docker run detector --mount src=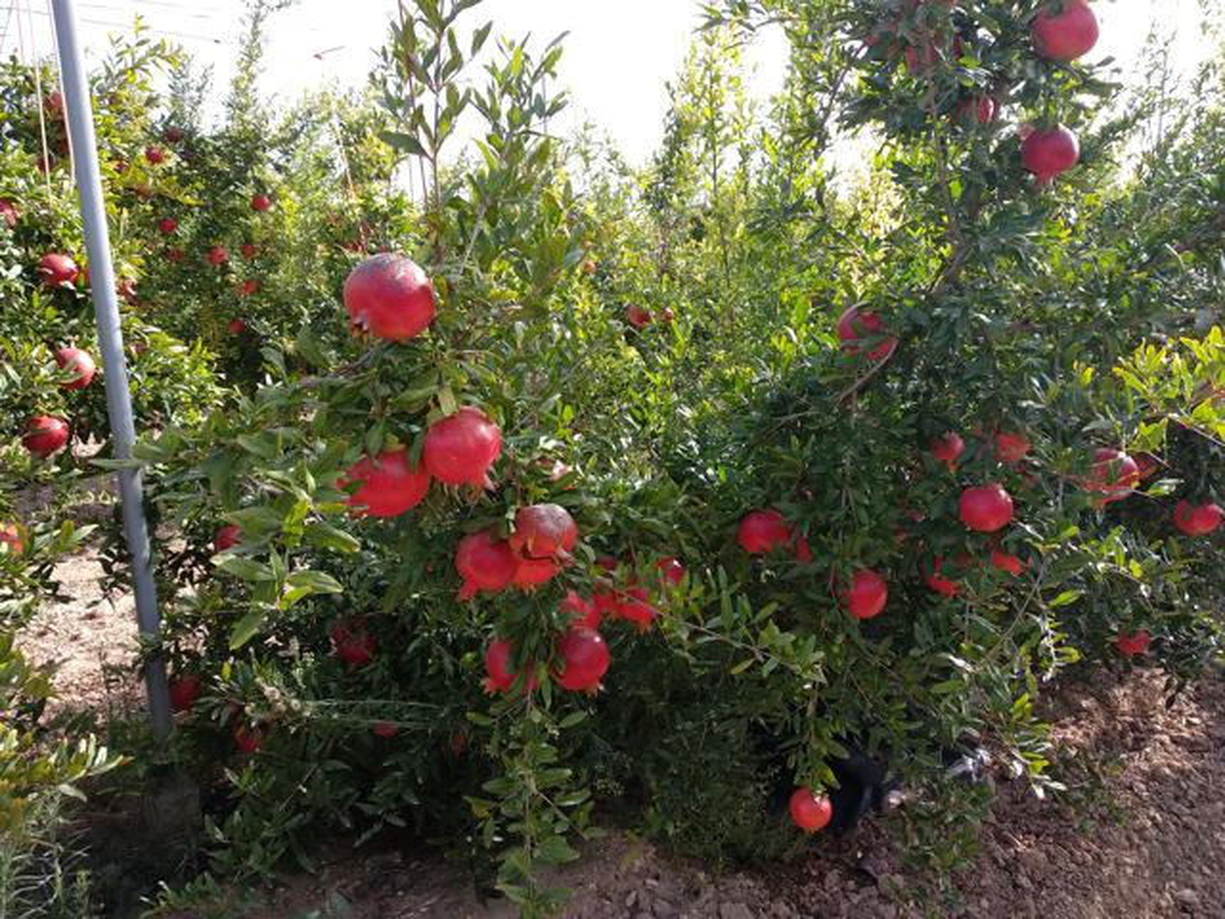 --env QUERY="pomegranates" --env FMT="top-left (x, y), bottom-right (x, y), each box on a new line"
top-left (1030, 0), bottom-right (1101, 63)
top-left (991, 548), bottom-right (1026, 574)
top-left (735, 509), bottom-right (792, 553)
top-left (959, 482), bottom-right (1014, 532)
top-left (0, 521), bottom-right (25, 551)
top-left (343, 251), bottom-right (434, 341)
top-left (419, 406), bottom-right (503, 490)
top-left (1080, 446), bottom-right (1139, 502)
top-left (54, 348), bottom-right (96, 389)
top-left (507, 502), bottom-right (578, 567)
top-left (214, 525), bottom-right (237, 551)
top-left (168, 676), bottom-right (199, 710)
top-left (549, 624), bottom-right (611, 699)
top-left (789, 787), bottom-right (833, 835)
top-left (1114, 630), bottom-right (1150, 657)
top-left (335, 624), bottom-right (377, 662)
top-left (930, 431), bottom-right (967, 461)
top-left (563, 592), bottom-right (605, 632)
top-left (23, 415), bottom-right (71, 459)
top-left (345, 448), bottom-right (433, 517)
top-left (921, 557), bottom-right (959, 595)
top-left (38, 253), bottom-right (78, 289)
top-left (593, 588), bottom-right (622, 622)
top-left (614, 588), bottom-right (657, 636)
top-left (454, 528), bottom-right (523, 601)
top-left (509, 559), bottom-right (557, 595)
top-left (232, 722), bottom-right (256, 751)
top-left (655, 557), bottom-right (685, 584)
top-left (1022, 123), bottom-right (1080, 188)
top-left (836, 303), bottom-right (894, 360)
top-left (842, 569), bottom-right (888, 618)
top-left (480, 639), bottom-right (538, 697)
top-left (1173, 498), bottom-right (1225, 536)
top-left (794, 536), bottom-right (813, 561)
top-left (995, 433), bottom-right (1030, 461)
top-left (957, 96), bottom-right (997, 124)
